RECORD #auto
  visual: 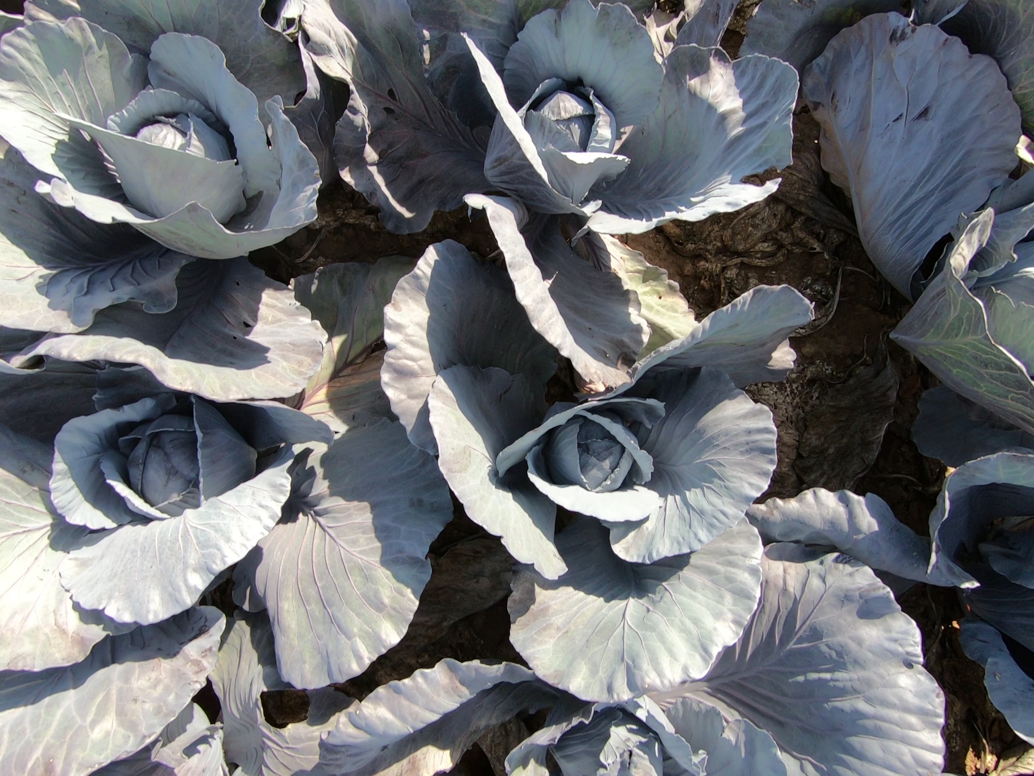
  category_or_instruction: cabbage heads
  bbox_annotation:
[967,241,1030,349]
[578,720,663,775]
[130,122,232,214]
[131,424,235,516]
[562,415,631,495]
[530,93,612,175]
